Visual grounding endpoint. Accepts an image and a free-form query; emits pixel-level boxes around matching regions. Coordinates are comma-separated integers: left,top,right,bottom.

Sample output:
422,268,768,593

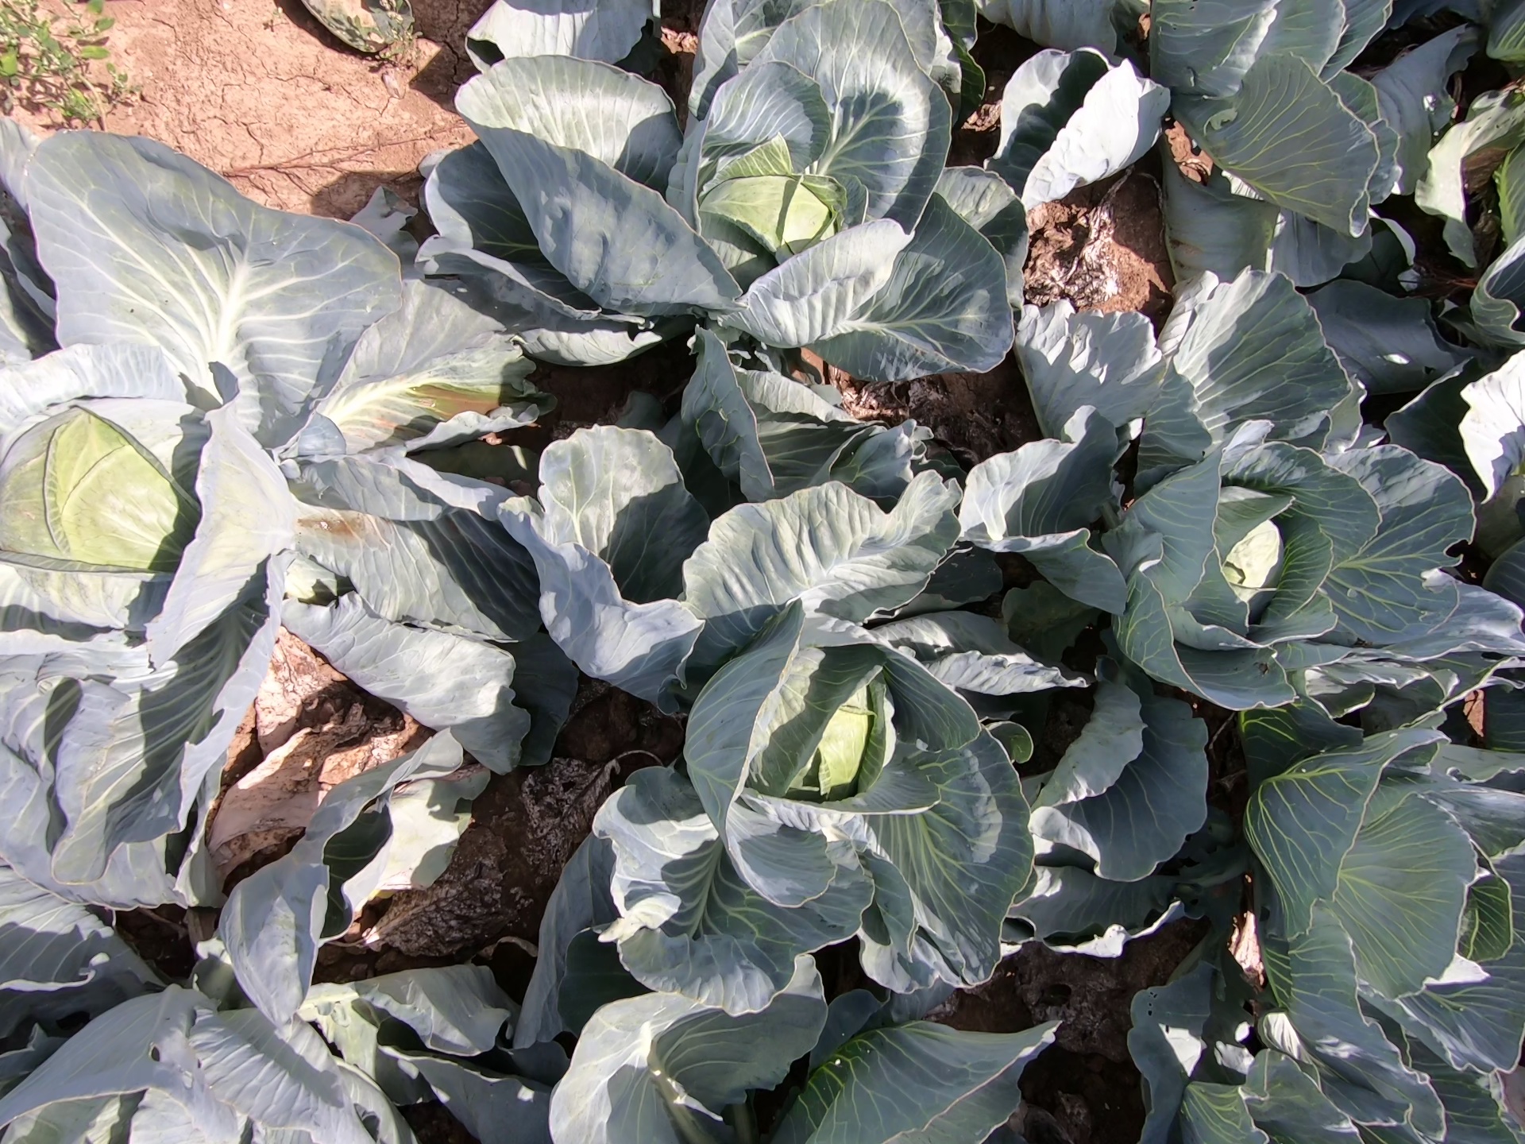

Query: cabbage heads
693,164,842,310
5,999,250,1142
1281,806,1404,950
705,645,900,823
2,396,283,624
1162,499,1287,624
